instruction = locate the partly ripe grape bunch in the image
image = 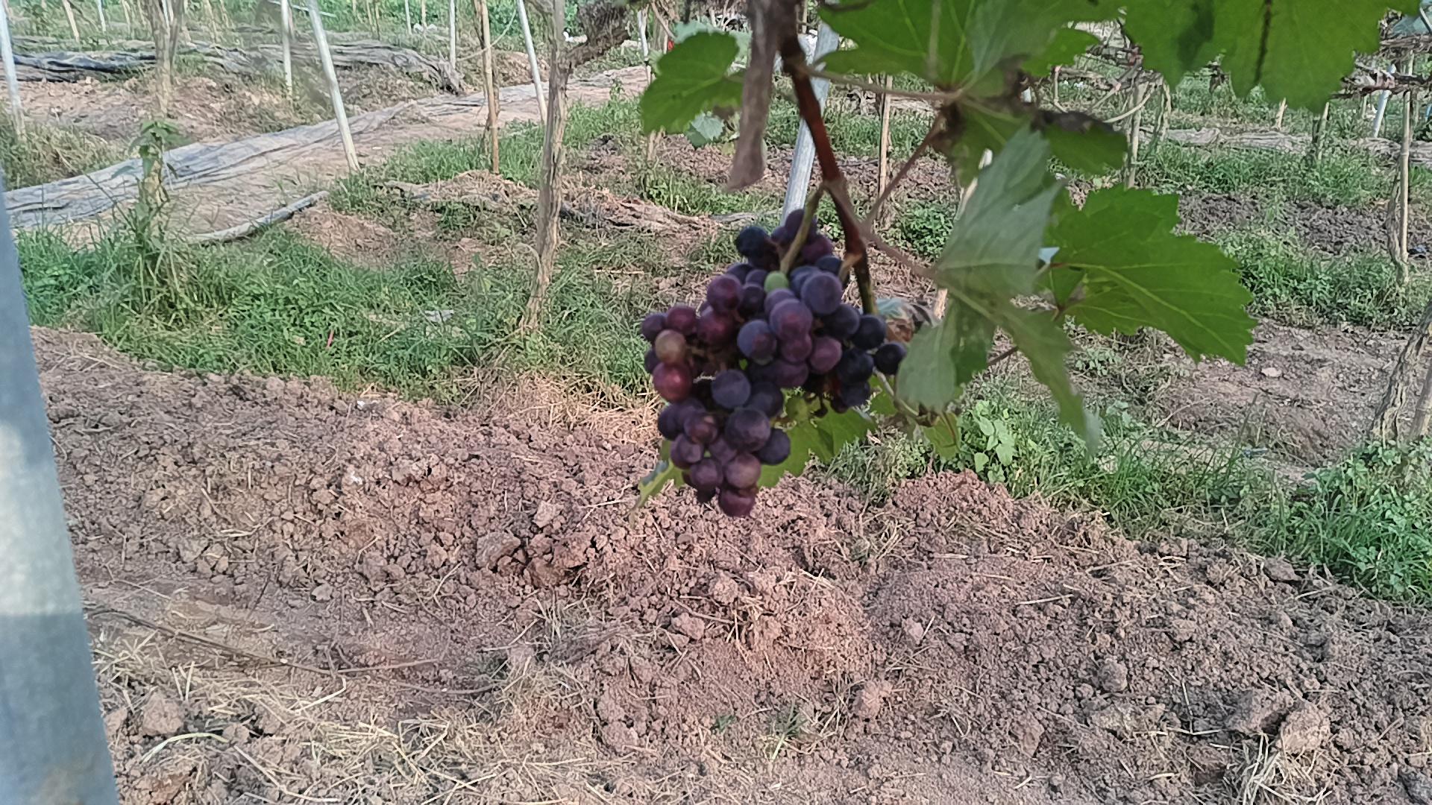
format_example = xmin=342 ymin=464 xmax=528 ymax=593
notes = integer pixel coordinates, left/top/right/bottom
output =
xmin=642 ymin=207 xmax=908 ymax=514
